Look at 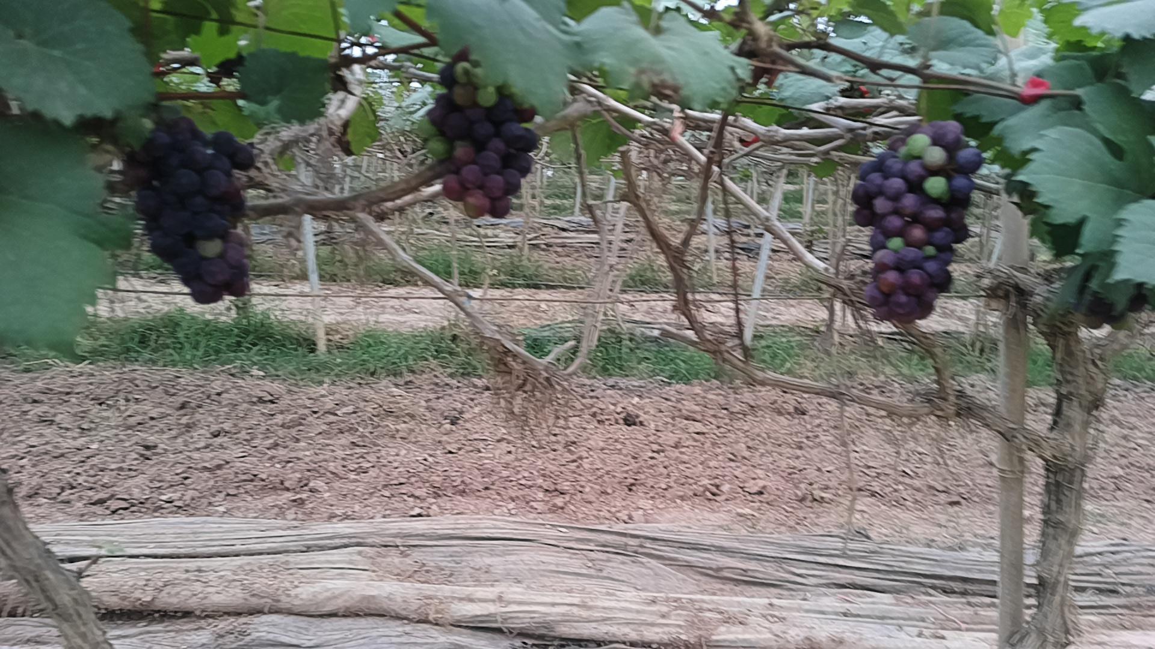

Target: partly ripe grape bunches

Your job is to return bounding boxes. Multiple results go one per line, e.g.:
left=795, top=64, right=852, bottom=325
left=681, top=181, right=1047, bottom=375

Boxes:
left=426, top=48, right=539, bottom=218
left=851, top=121, right=983, bottom=324
left=122, top=116, right=254, bottom=303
